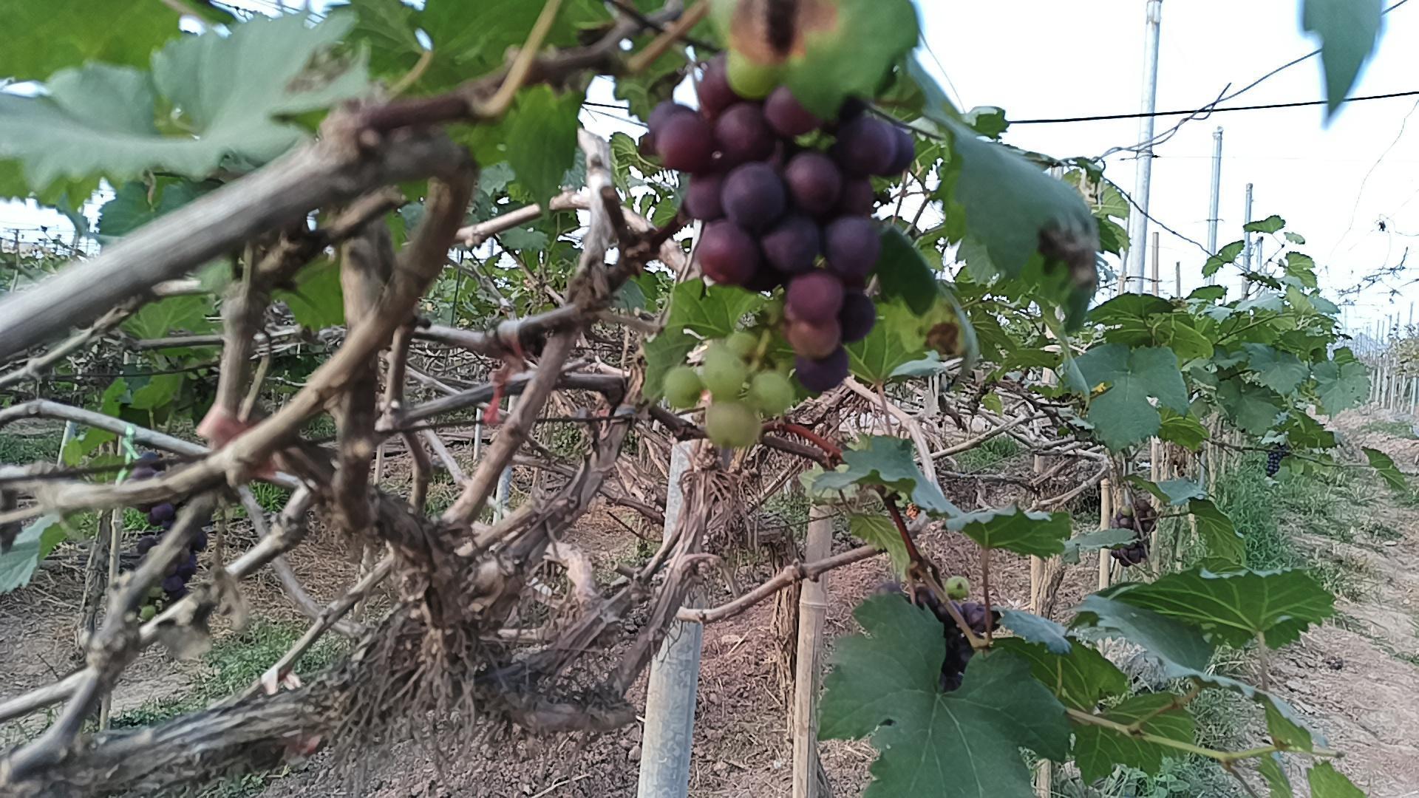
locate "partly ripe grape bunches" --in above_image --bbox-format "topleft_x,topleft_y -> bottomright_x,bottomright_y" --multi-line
647,53 -> 912,448
1109,499 -> 1156,567
879,576 -> 1000,692
117,451 -> 211,620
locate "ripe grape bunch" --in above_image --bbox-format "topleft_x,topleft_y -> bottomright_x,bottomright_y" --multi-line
1265,443 -> 1290,477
